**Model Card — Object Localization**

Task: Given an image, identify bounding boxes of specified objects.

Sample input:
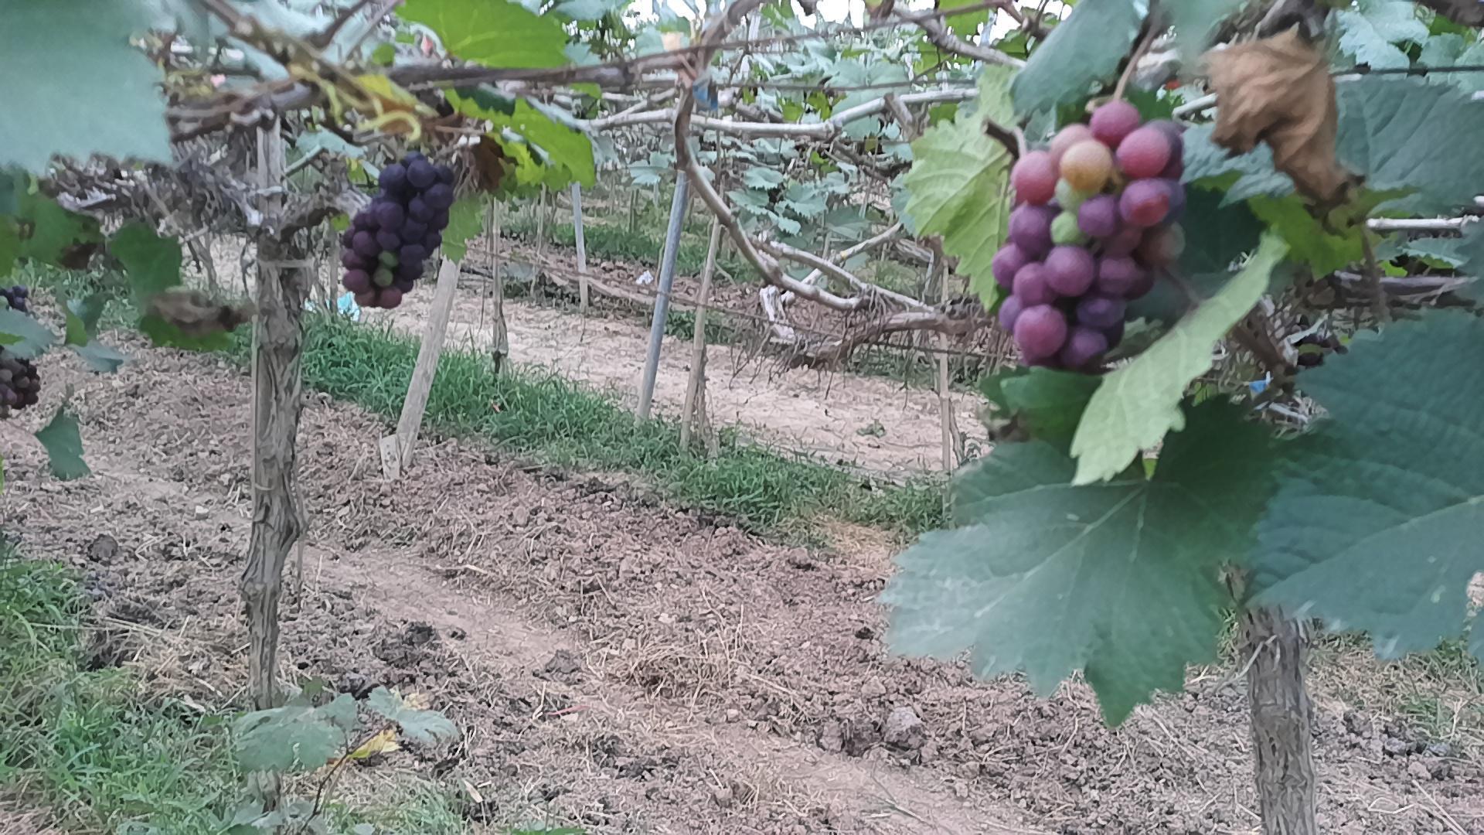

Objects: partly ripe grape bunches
[992,102,1185,369]
[342,152,454,308]
[0,286,52,418]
